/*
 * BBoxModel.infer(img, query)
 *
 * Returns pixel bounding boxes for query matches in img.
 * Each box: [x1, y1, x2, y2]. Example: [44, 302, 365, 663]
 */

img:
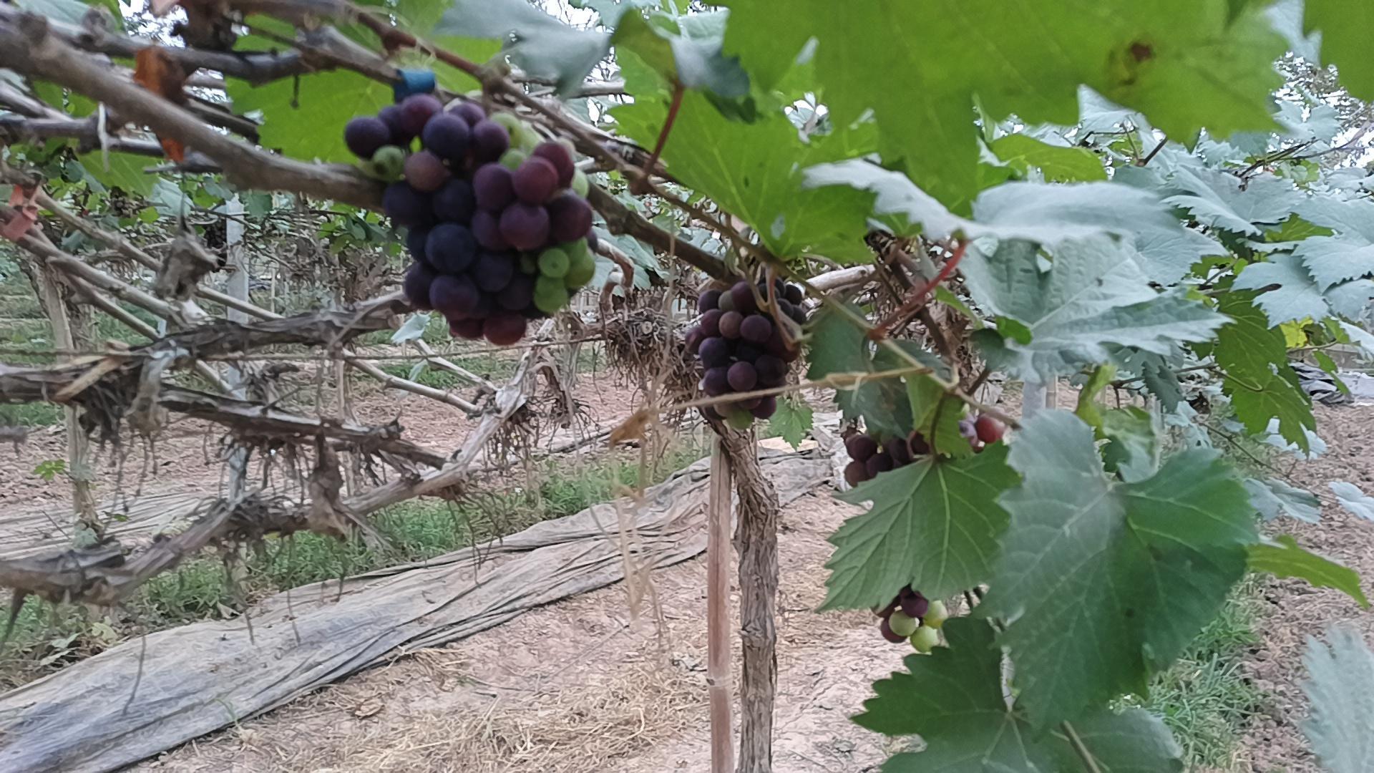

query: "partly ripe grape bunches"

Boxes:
[842, 410, 999, 651]
[686, 276, 807, 430]
[345, 94, 594, 344]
